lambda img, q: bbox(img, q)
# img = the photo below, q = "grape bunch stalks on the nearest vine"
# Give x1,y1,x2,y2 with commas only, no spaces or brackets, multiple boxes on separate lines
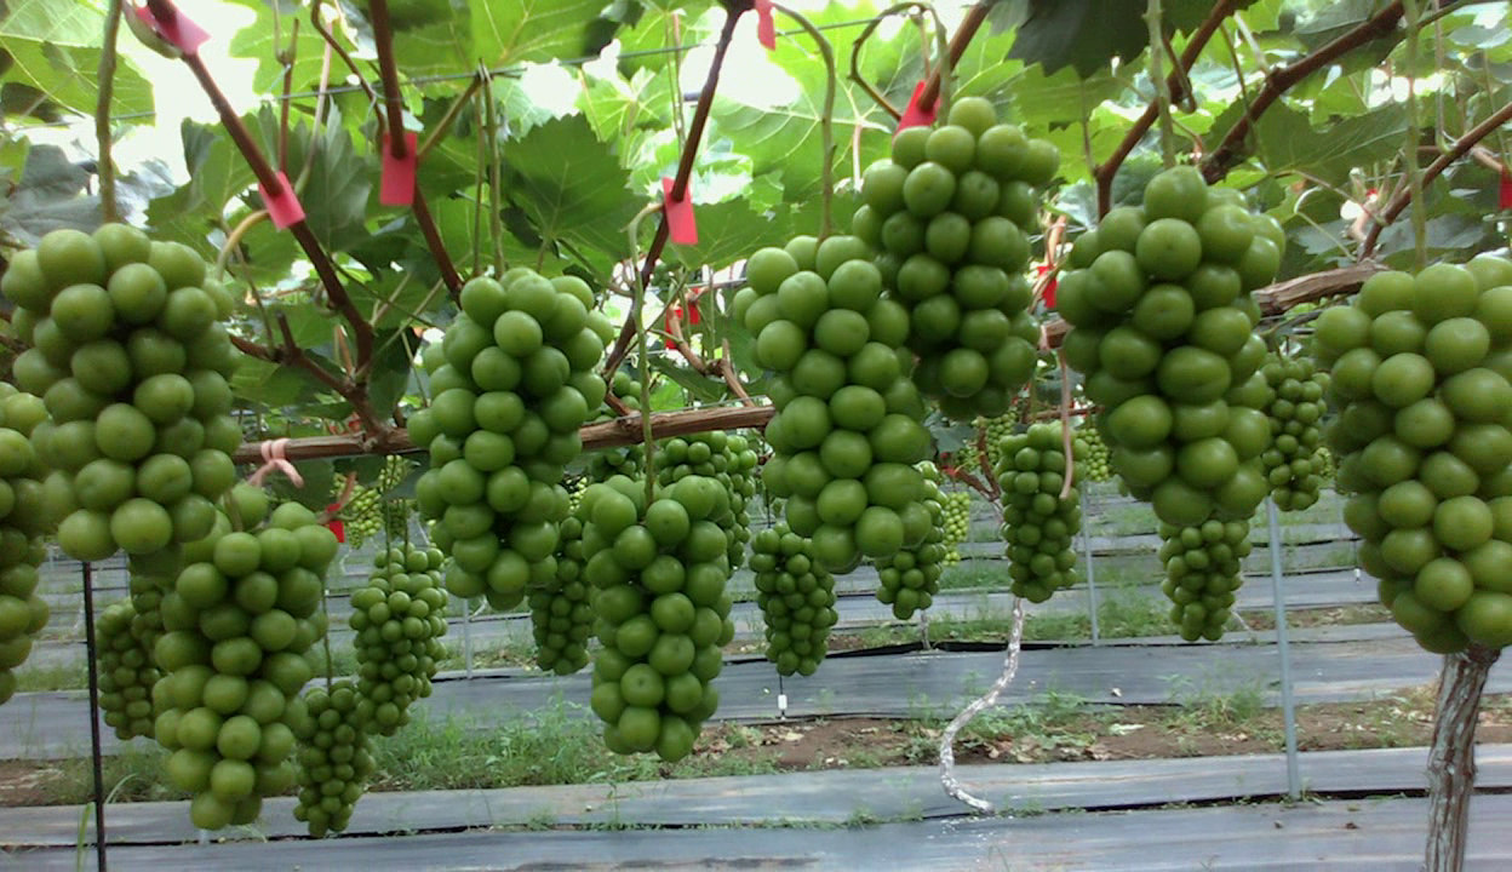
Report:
222,490,244,530
417,70,505,279
771,2,838,243
626,201,664,504
849,0,950,126
1403,1,1427,275
96,0,122,225
1142,1,1176,170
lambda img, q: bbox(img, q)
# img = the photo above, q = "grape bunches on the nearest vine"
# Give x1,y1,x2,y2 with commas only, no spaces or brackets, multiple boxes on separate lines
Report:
578,474,735,763
1310,254,1511,655
150,483,338,832
731,234,932,574
0,223,245,576
1054,166,1285,528
850,98,1060,423
405,268,614,612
